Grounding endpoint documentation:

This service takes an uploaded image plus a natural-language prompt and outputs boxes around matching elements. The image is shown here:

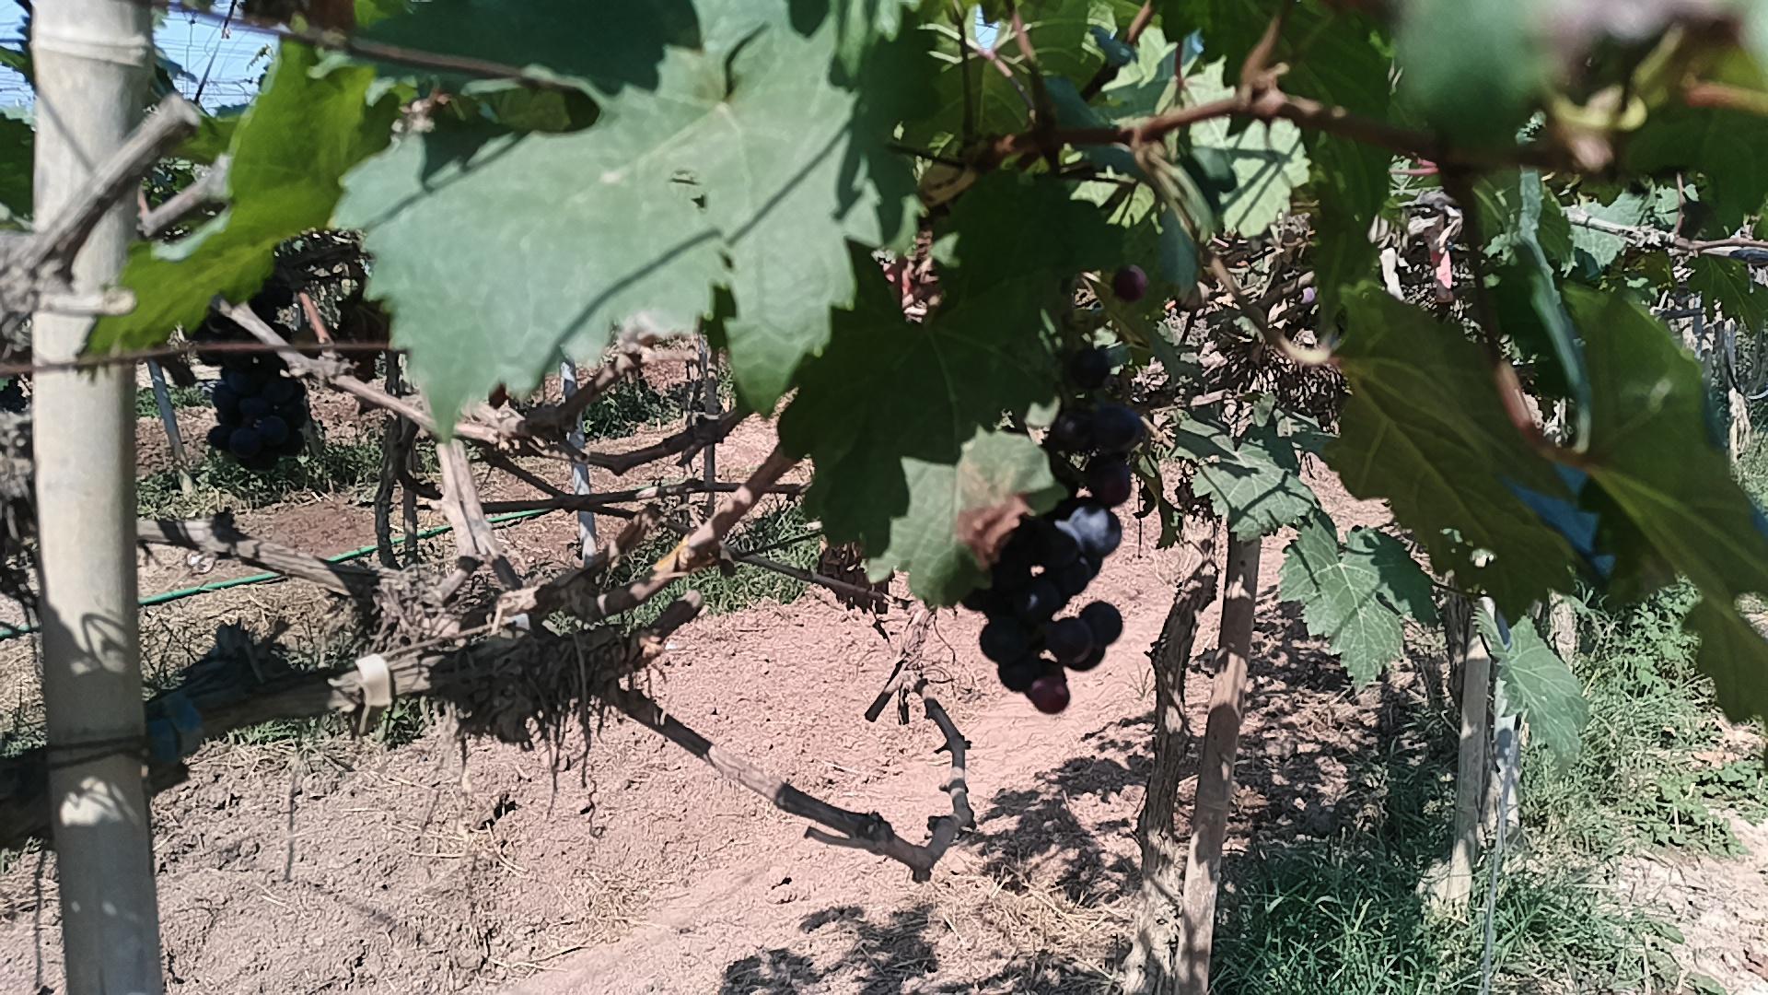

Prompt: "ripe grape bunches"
[190,278,325,472]
[964,341,1148,712]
